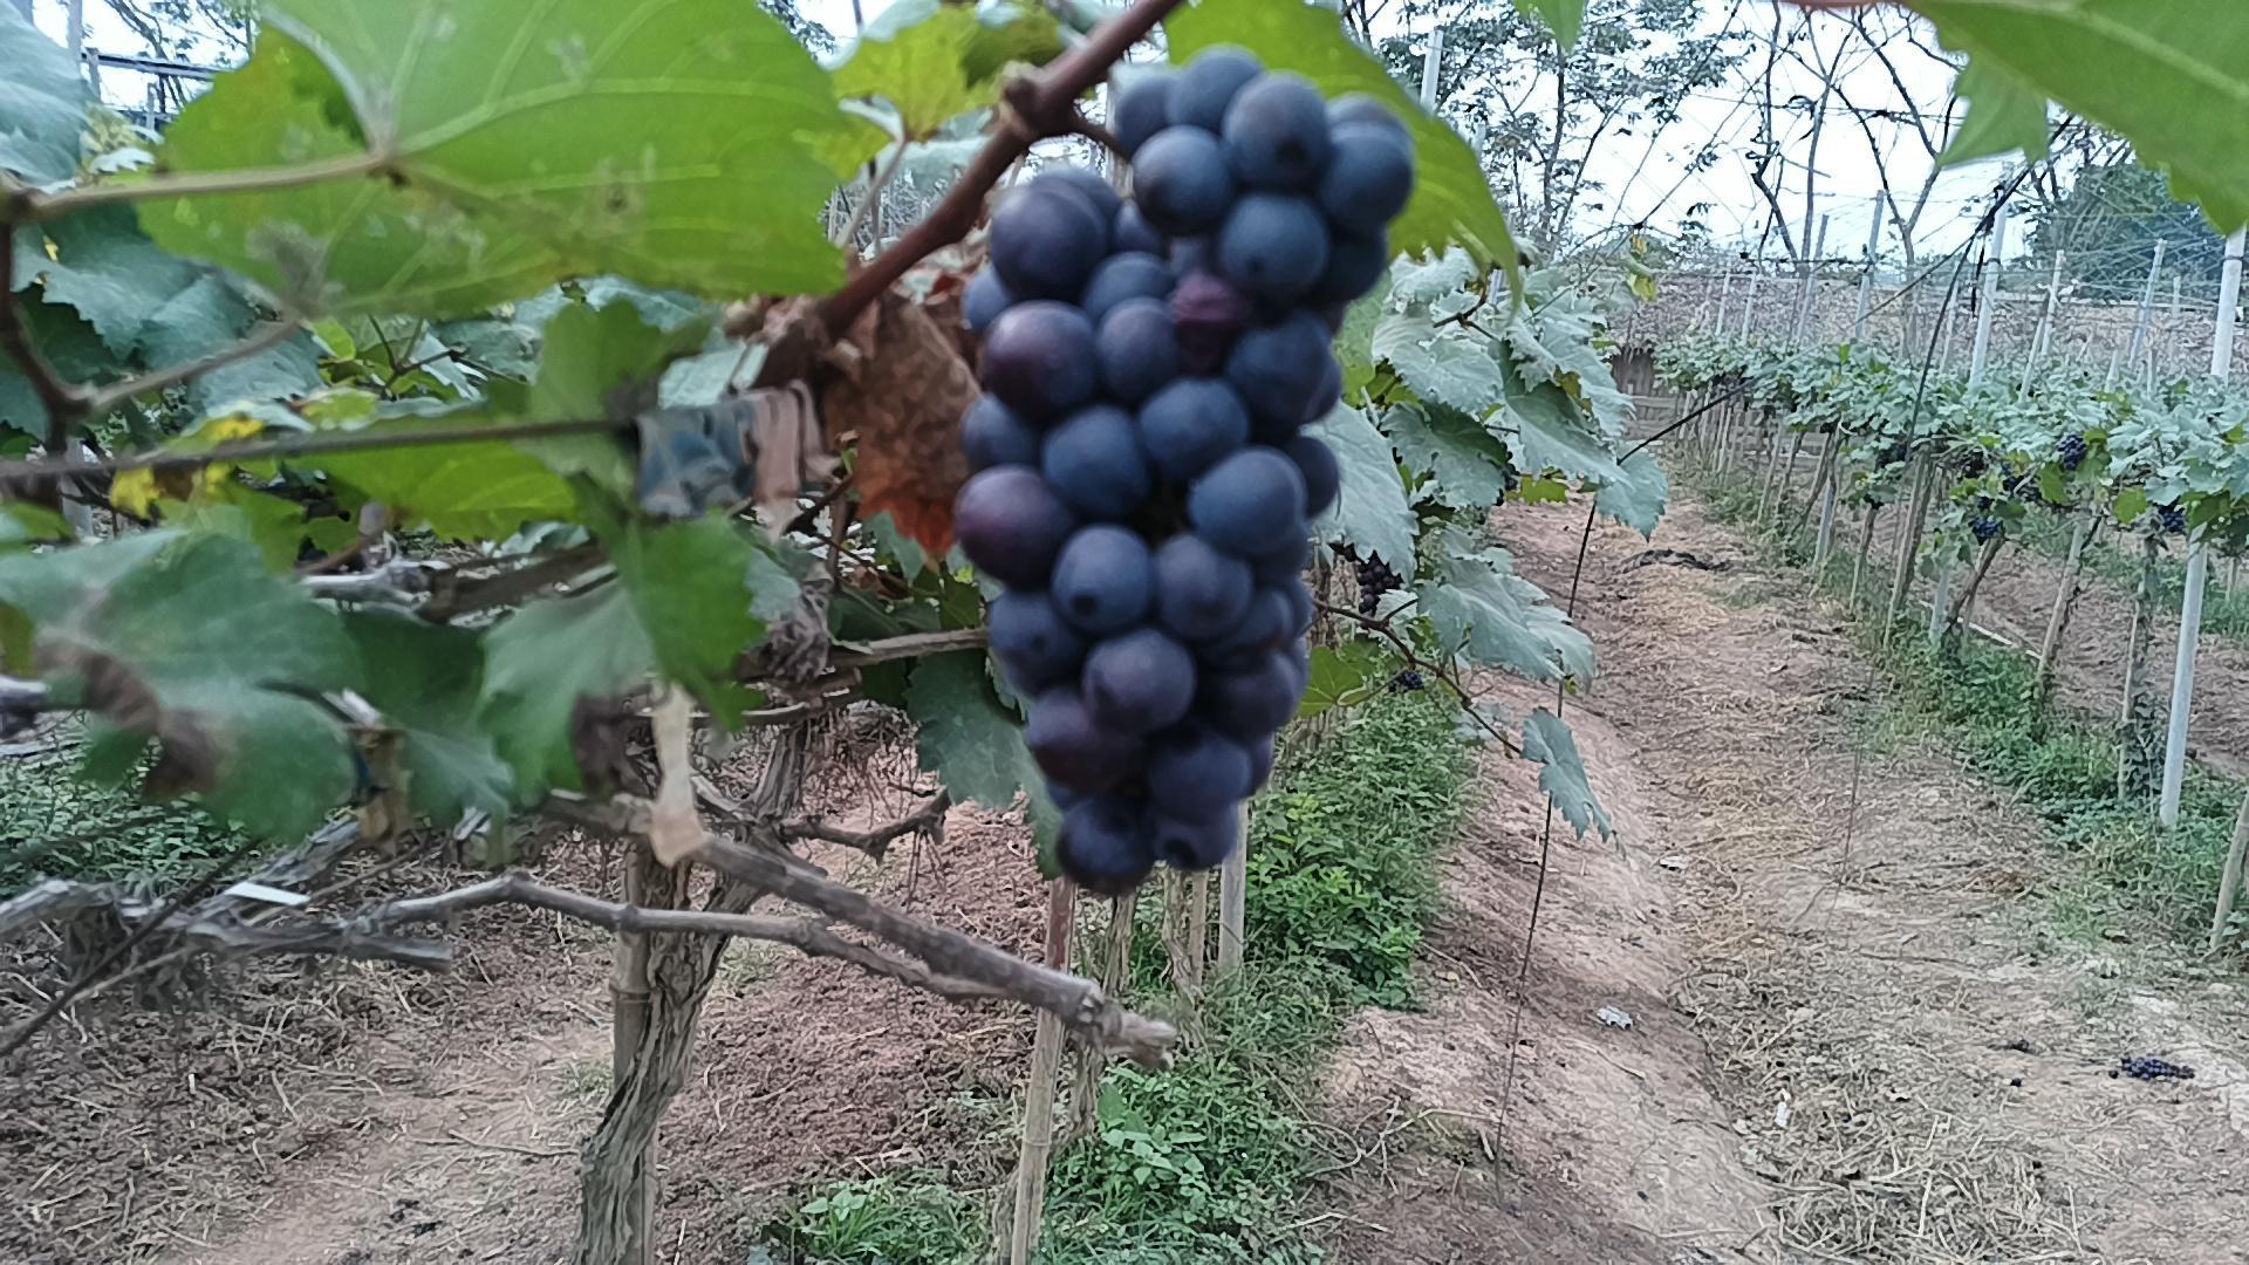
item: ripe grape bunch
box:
[957,47,1409,893]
